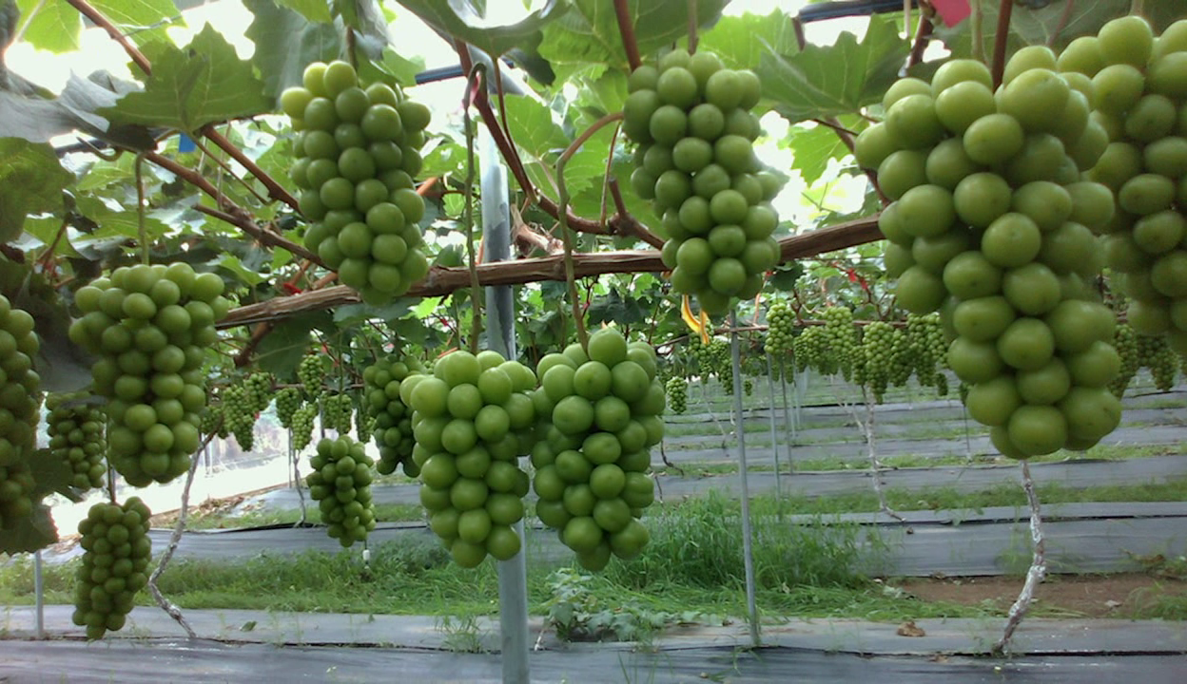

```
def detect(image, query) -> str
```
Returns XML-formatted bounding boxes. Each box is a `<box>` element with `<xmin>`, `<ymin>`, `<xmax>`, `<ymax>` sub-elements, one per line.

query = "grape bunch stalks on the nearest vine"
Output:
<box><xmin>347</xmin><ymin>28</ymin><xmax>358</xmax><ymax>66</ymax></box>
<box><xmin>992</xmin><ymin>0</ymin><xmax>1015</xmax><ymax>93</ymax></box>
<box><xmin>556</xmin><ymin>111</ymin><xmax>623</xmax><ymax>350</ymax></box>
<box><xmin>135</xmin><ymin>153</ymin><xmax>148</xmax><ymax>262</ymax></box>
<box><xmin>463</xmin><ymin>63</ymin><xmax>488</xmax><ymax>352</ymax></box>
<box><xmin>1131</xmin><ymin>0</ymin><xmax>1143</xmax><ymax>13</ymax></box>
<box><xmin>687</xmin><ymin>1</ymin><xmax>699</xmax><ymax>50</ymax></box>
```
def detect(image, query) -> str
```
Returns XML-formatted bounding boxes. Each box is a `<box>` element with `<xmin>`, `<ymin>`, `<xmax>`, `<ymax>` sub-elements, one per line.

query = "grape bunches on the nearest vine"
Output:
<box><xmin>281</xmin><ymin>60</ymin><xmax>432</xmax><ymax>307</ymax></box>
<box><xmin>530</xmin><ymin>329</ymin><xmax>668</xmax><ymax>574</ymax></box>
<box><xmin>1061</xmin><ymin>16</ymin><xmax>1186</xmax><ymax>353</ymax></box>
<box><xmin>68</xmin><ymin>262</ymin><xmax>229</xmax><ymax>487</ymax></box>
<box><xmin>399</xmin><ymin>351</ymin><xmax>536</xmax><ymax>570</ymax></box>
<box><xmin>625</xmin><ymin>49</ymin><xmax>780</xmax><ymax>315</ymax></box>
<box><xmin>855</xmin><ymin>46</ymin><xmax>1121</xmax><ymax>460</ymax></box>
<box><xmin>2</xmin><ymin>293</ymin><xmax>41</xmax><ymax>516</ymax></box>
